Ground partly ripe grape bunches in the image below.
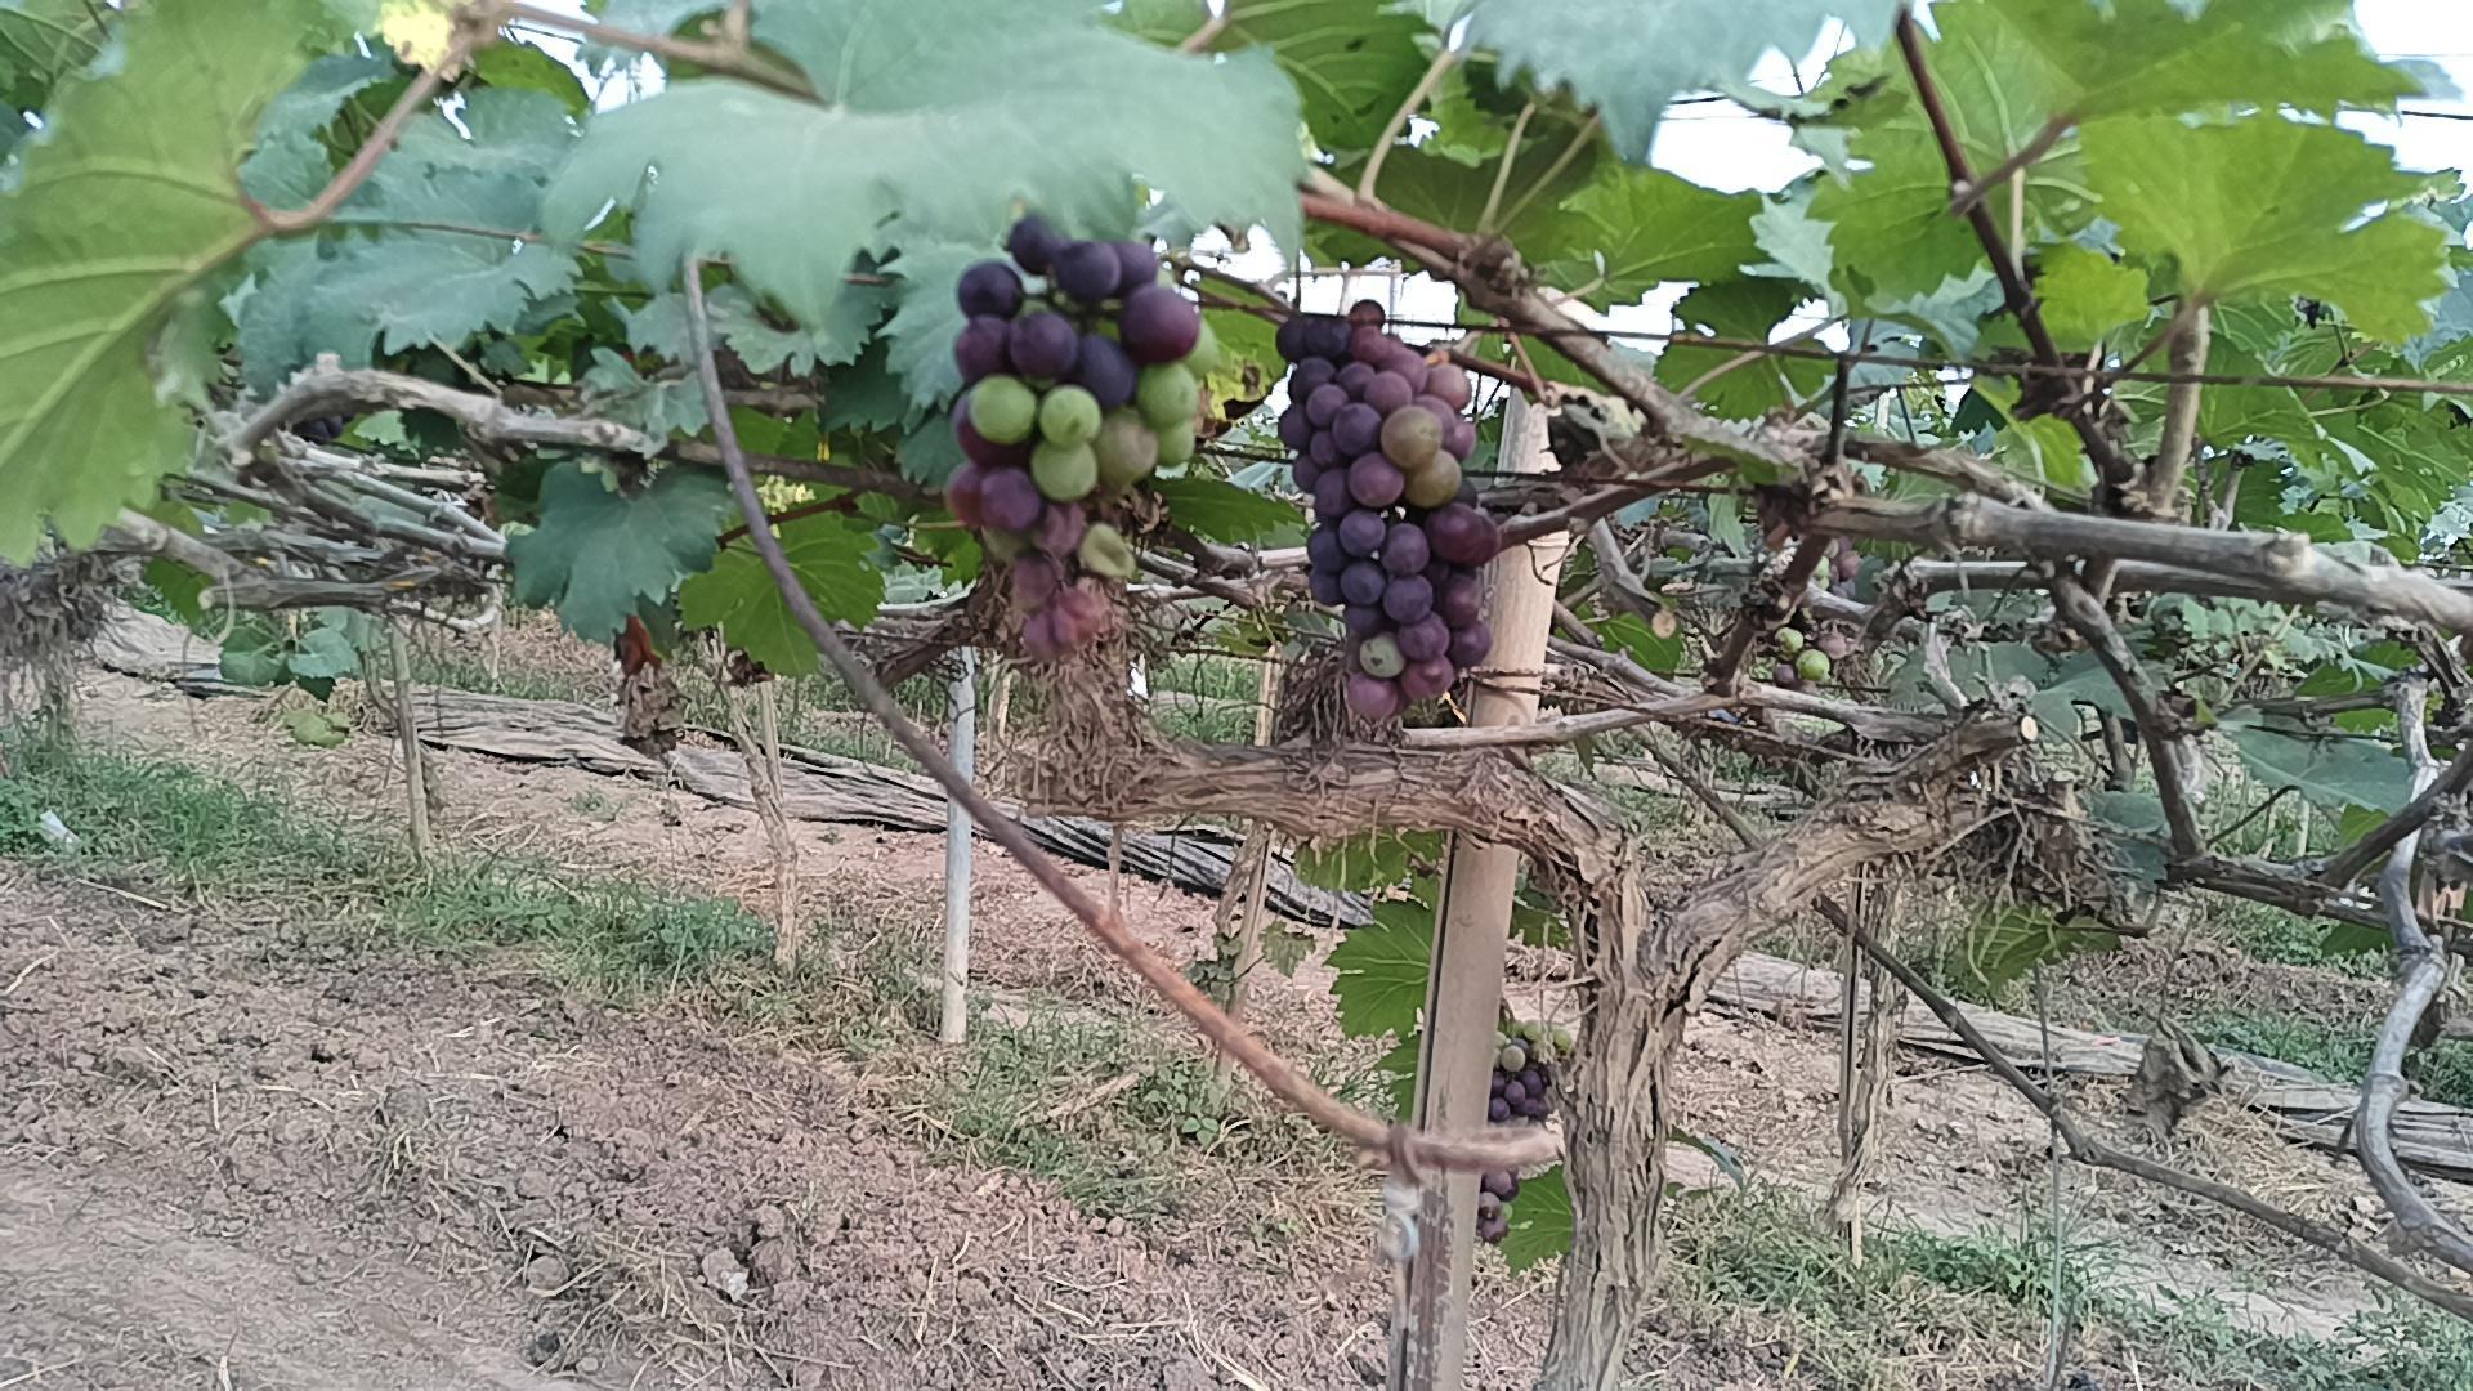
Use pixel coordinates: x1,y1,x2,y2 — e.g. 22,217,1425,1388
948,215,1207,658
1476,1020,1573,1244
1278,301,1501,720
1766,535,1862,695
